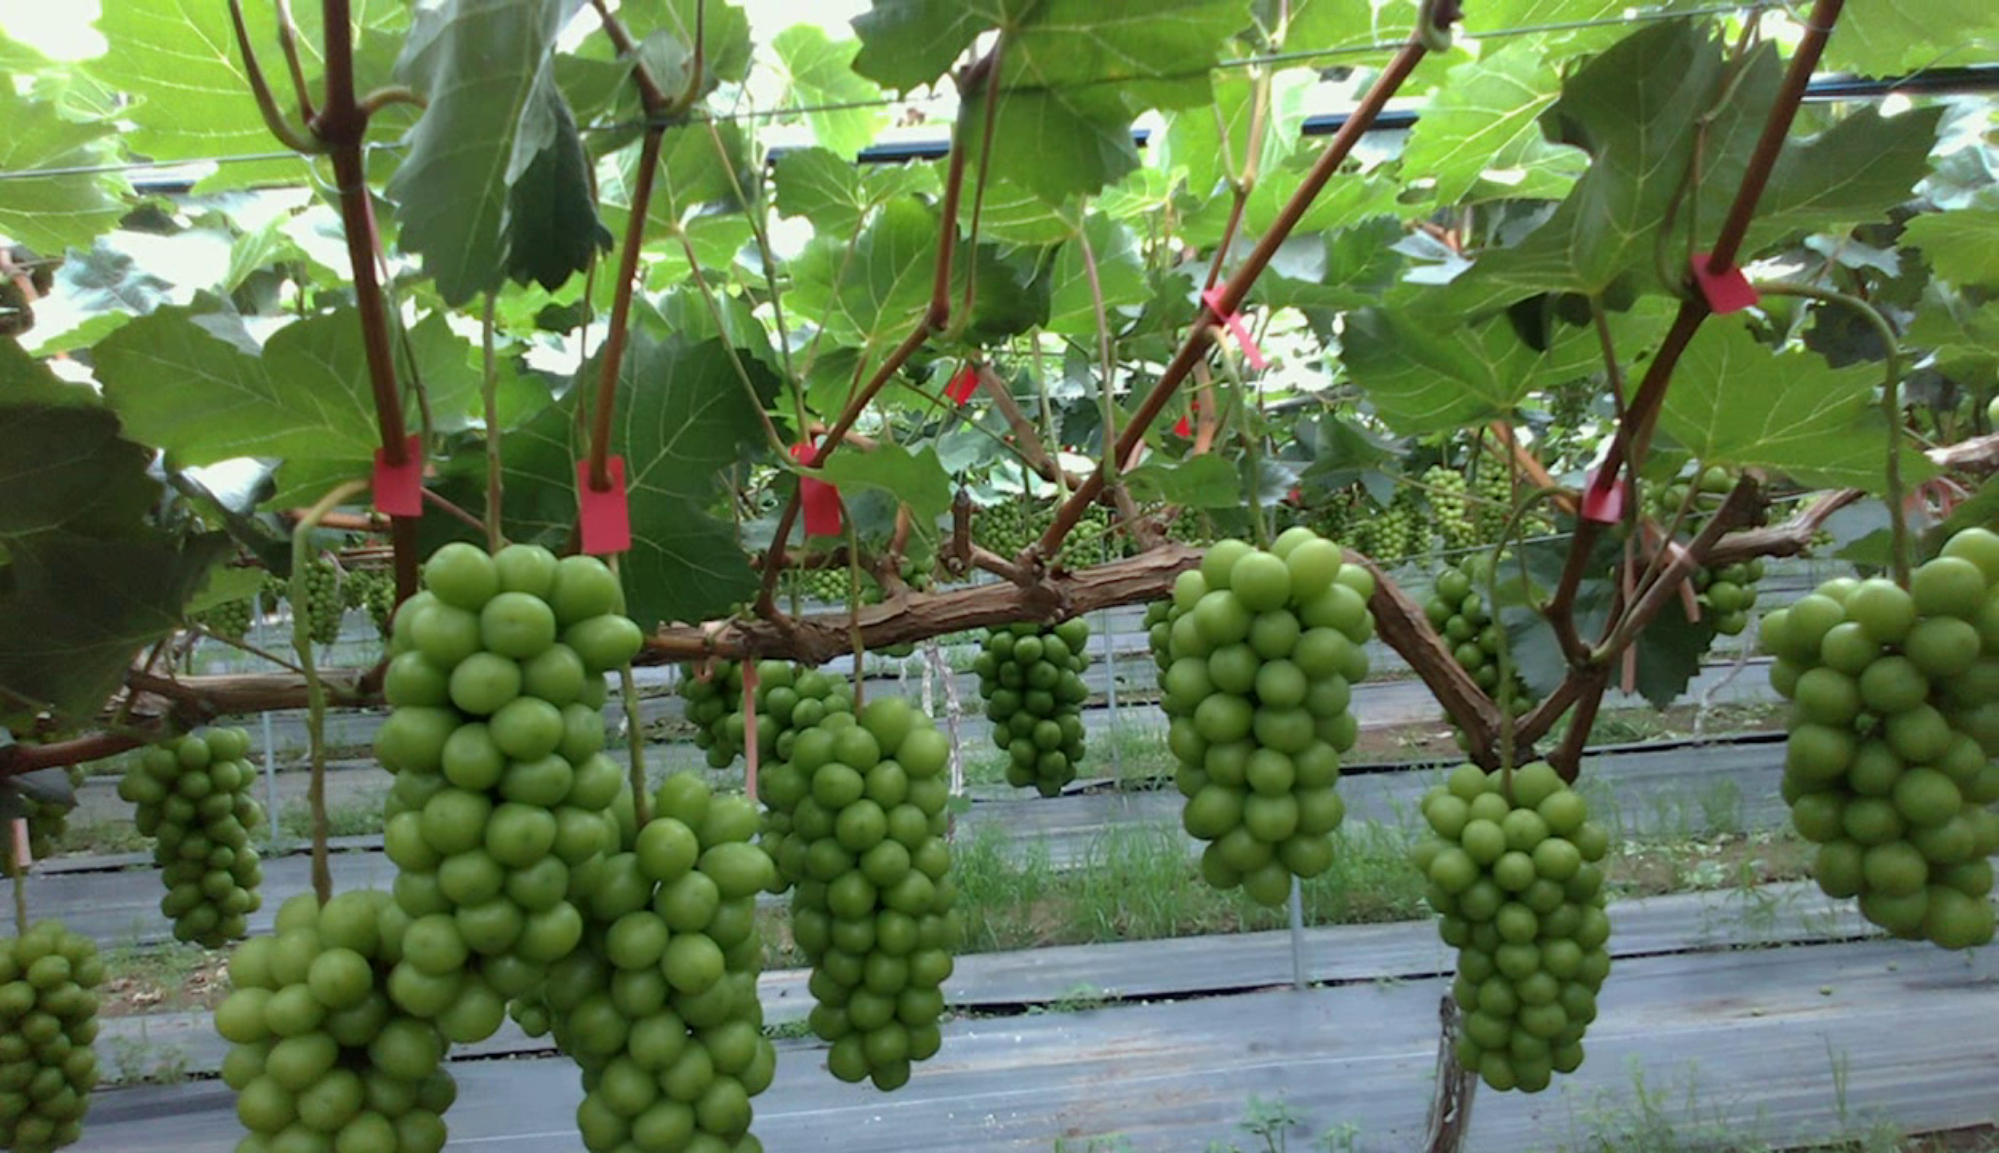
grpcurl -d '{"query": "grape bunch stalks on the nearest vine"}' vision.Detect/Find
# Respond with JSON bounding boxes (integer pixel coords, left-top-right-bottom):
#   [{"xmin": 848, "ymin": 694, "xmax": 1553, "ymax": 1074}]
[
  {"xmin": 1211, "ymin": 323, "xmax": 1269, "ymax": 551},
  {"xmin": 1752, "ymin": 277, "xmax": 1911, "ymax": 593},
  {"xmin": 839, "ymin": 493, "xmax": 862, "ymax": 724},
  {"xmin": 620, "ymin": 666, "xmax": 652, "ymax": 836},
  {"xmin": 293, "ymin": 479, "xmax": 372, "ymax": 913},
  {"xmin": 1485, "ymin": 482, "xmax": 1576, "ymax": 809}
]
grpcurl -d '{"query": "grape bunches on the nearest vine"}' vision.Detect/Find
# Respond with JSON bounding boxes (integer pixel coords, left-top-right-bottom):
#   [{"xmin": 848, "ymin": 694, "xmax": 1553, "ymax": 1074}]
[
  {"xmin": 1762, "ymin": 528, "xmax": 1997, "ymax": 953},
  {"xmin": 372, "ymin": 543, "xmax": 642, "ymax": 1044},
  {"xmin": 756, "ymin": 695, "xmax": 959, "ymax": 1089},
  {"xmin": 216, "ymin": 889, "xmax": 458, "ymax": 1151},
  {"xmin": 1166, "ymin": 525, "xmax": 1376, "ymax": 908},
  {"xmin": 1411, "ymin": 761, "xmax": 1611, "ymax": 1094},
  {"xmin": 545, "ymin": 772, "xmax": 780, "ymax": 1151}
]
